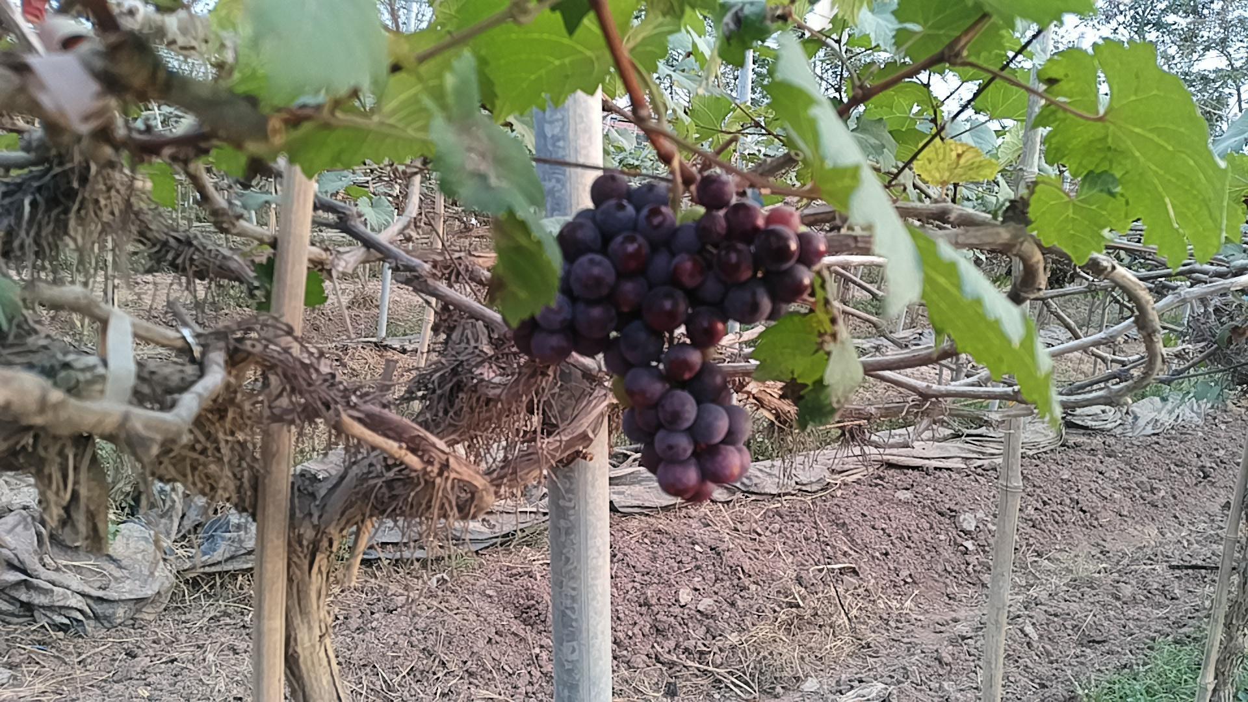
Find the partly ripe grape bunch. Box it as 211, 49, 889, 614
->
514, 174, 828, 500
